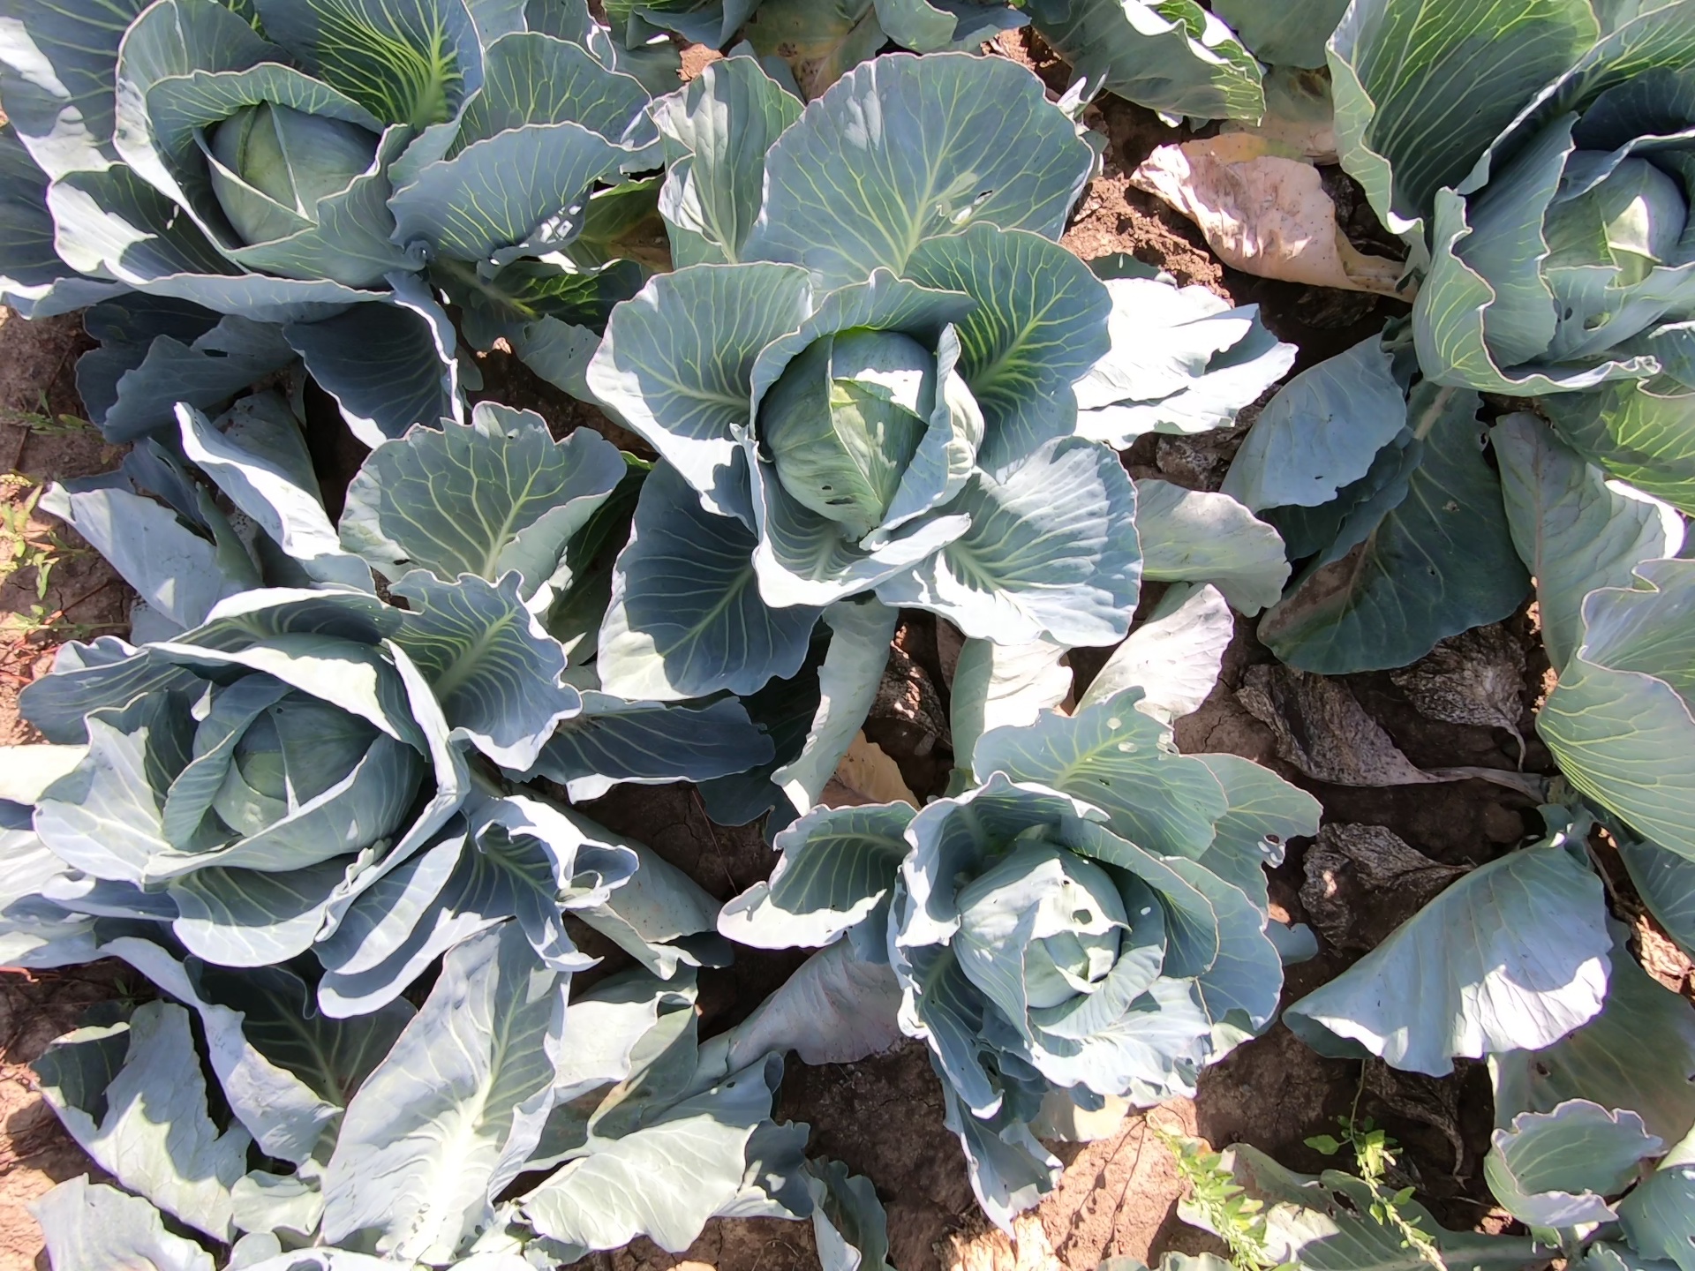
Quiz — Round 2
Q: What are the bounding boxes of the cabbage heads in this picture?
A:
[954,849,1121,1012]
[757,325,989,525]
[1503,141,1685,335]
[215,87,368,266]
[197,666,403,850]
